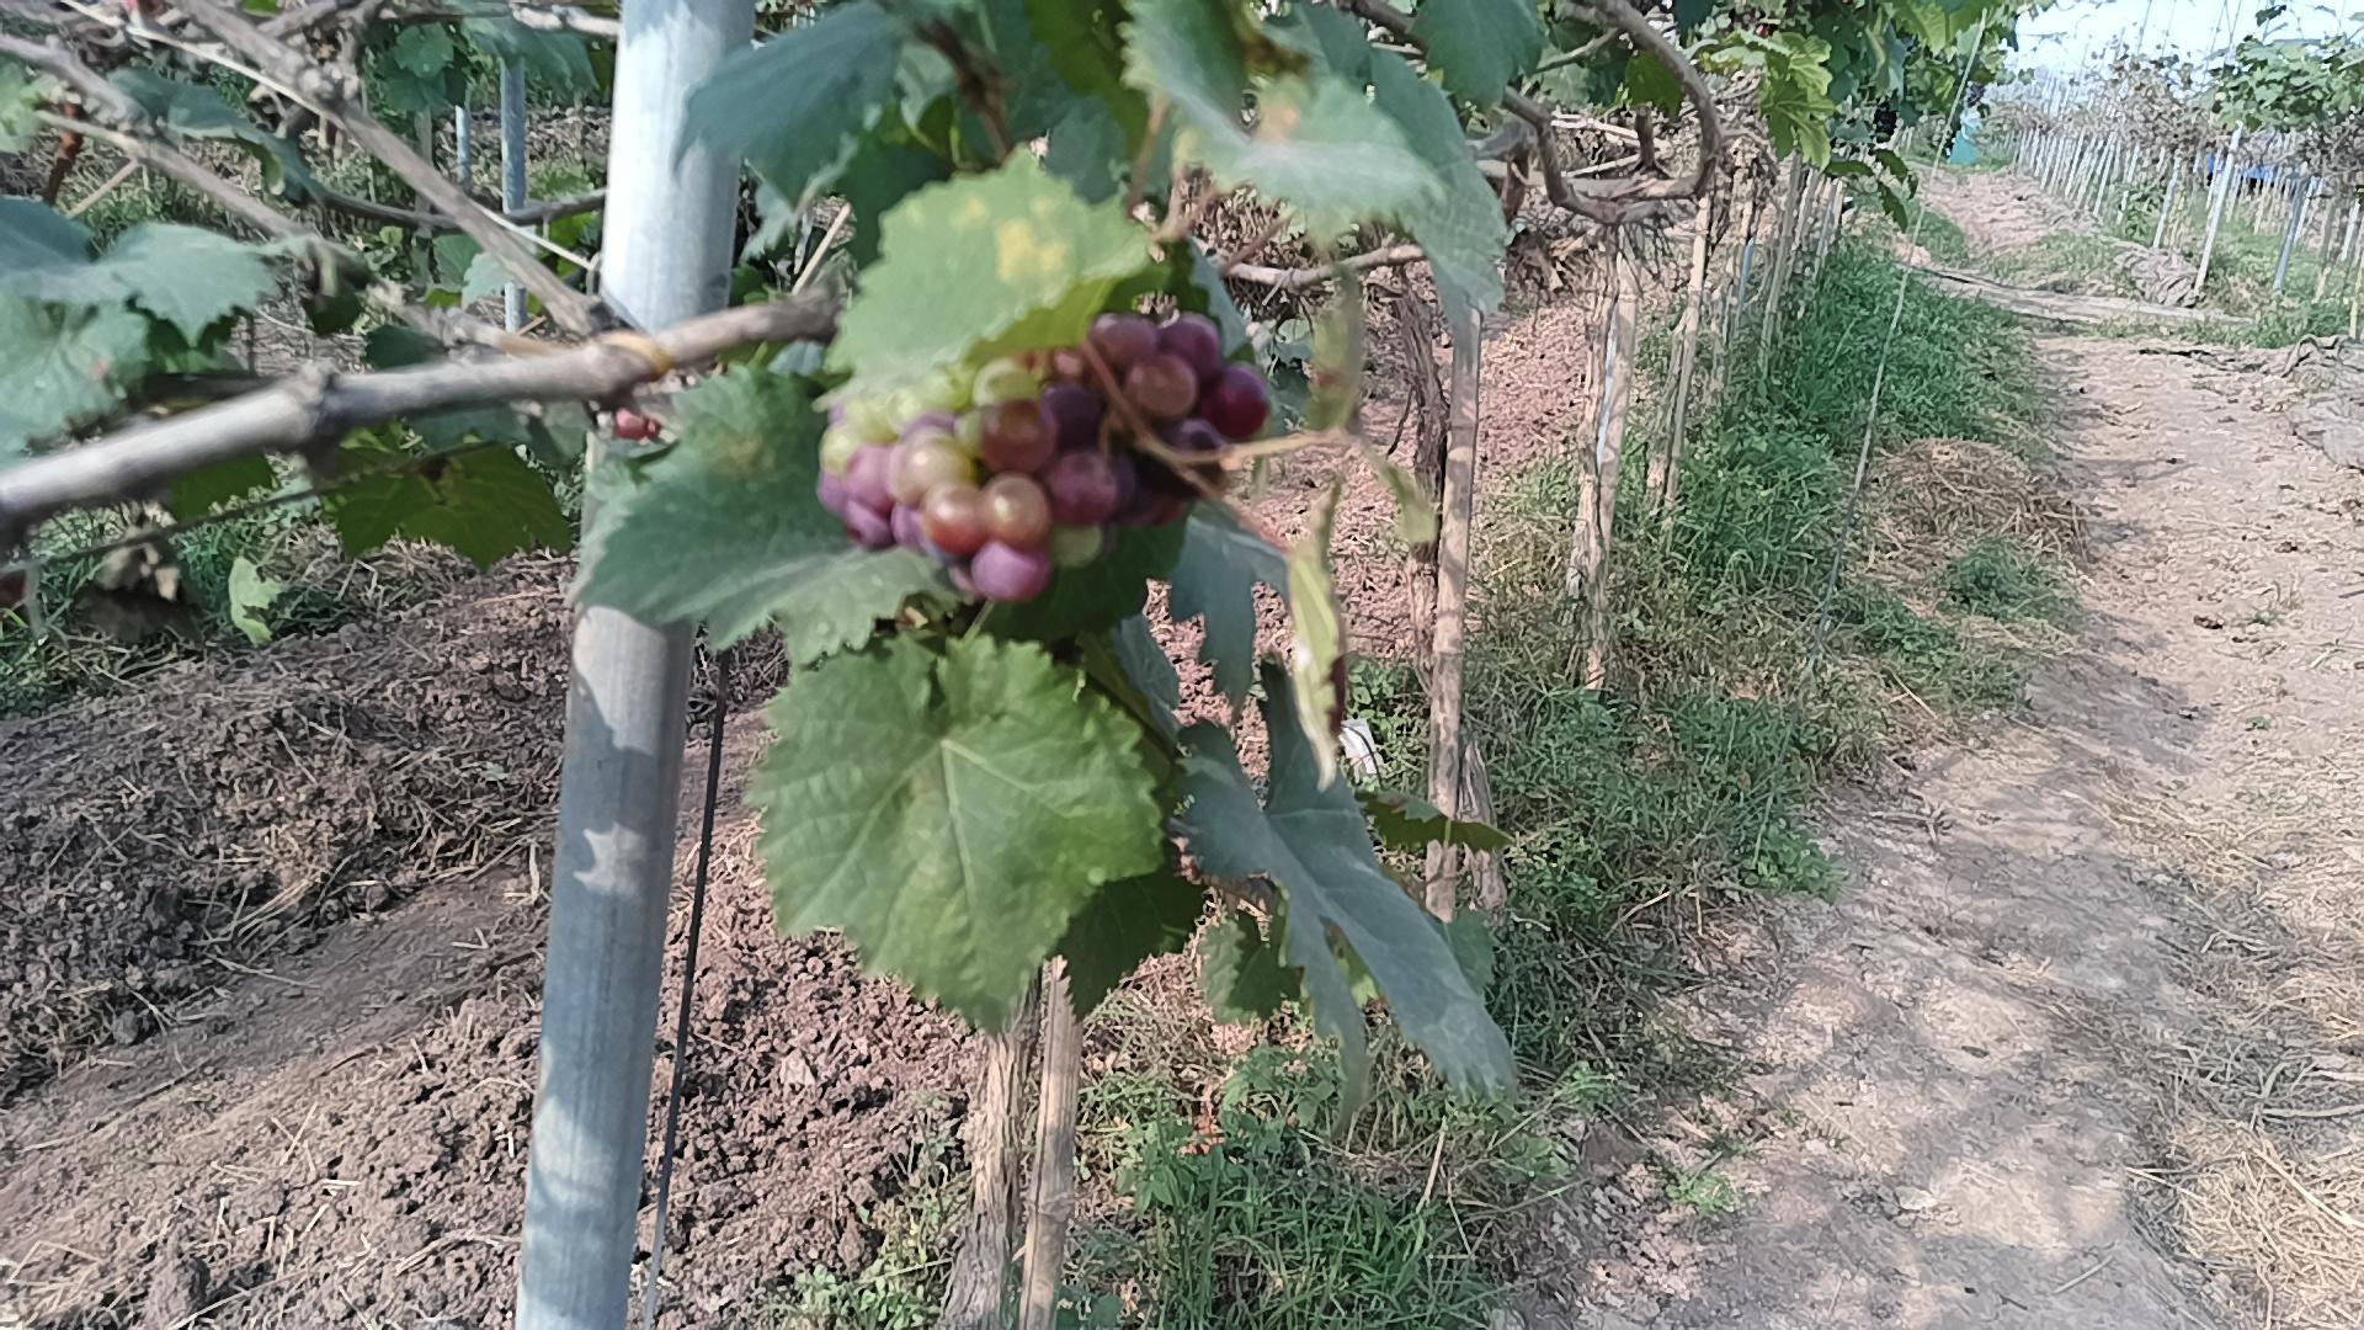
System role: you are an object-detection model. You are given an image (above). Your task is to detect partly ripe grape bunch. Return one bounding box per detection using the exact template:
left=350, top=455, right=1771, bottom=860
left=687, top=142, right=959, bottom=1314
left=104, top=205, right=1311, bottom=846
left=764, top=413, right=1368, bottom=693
left=818, top=312, right=1269, bottom=601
